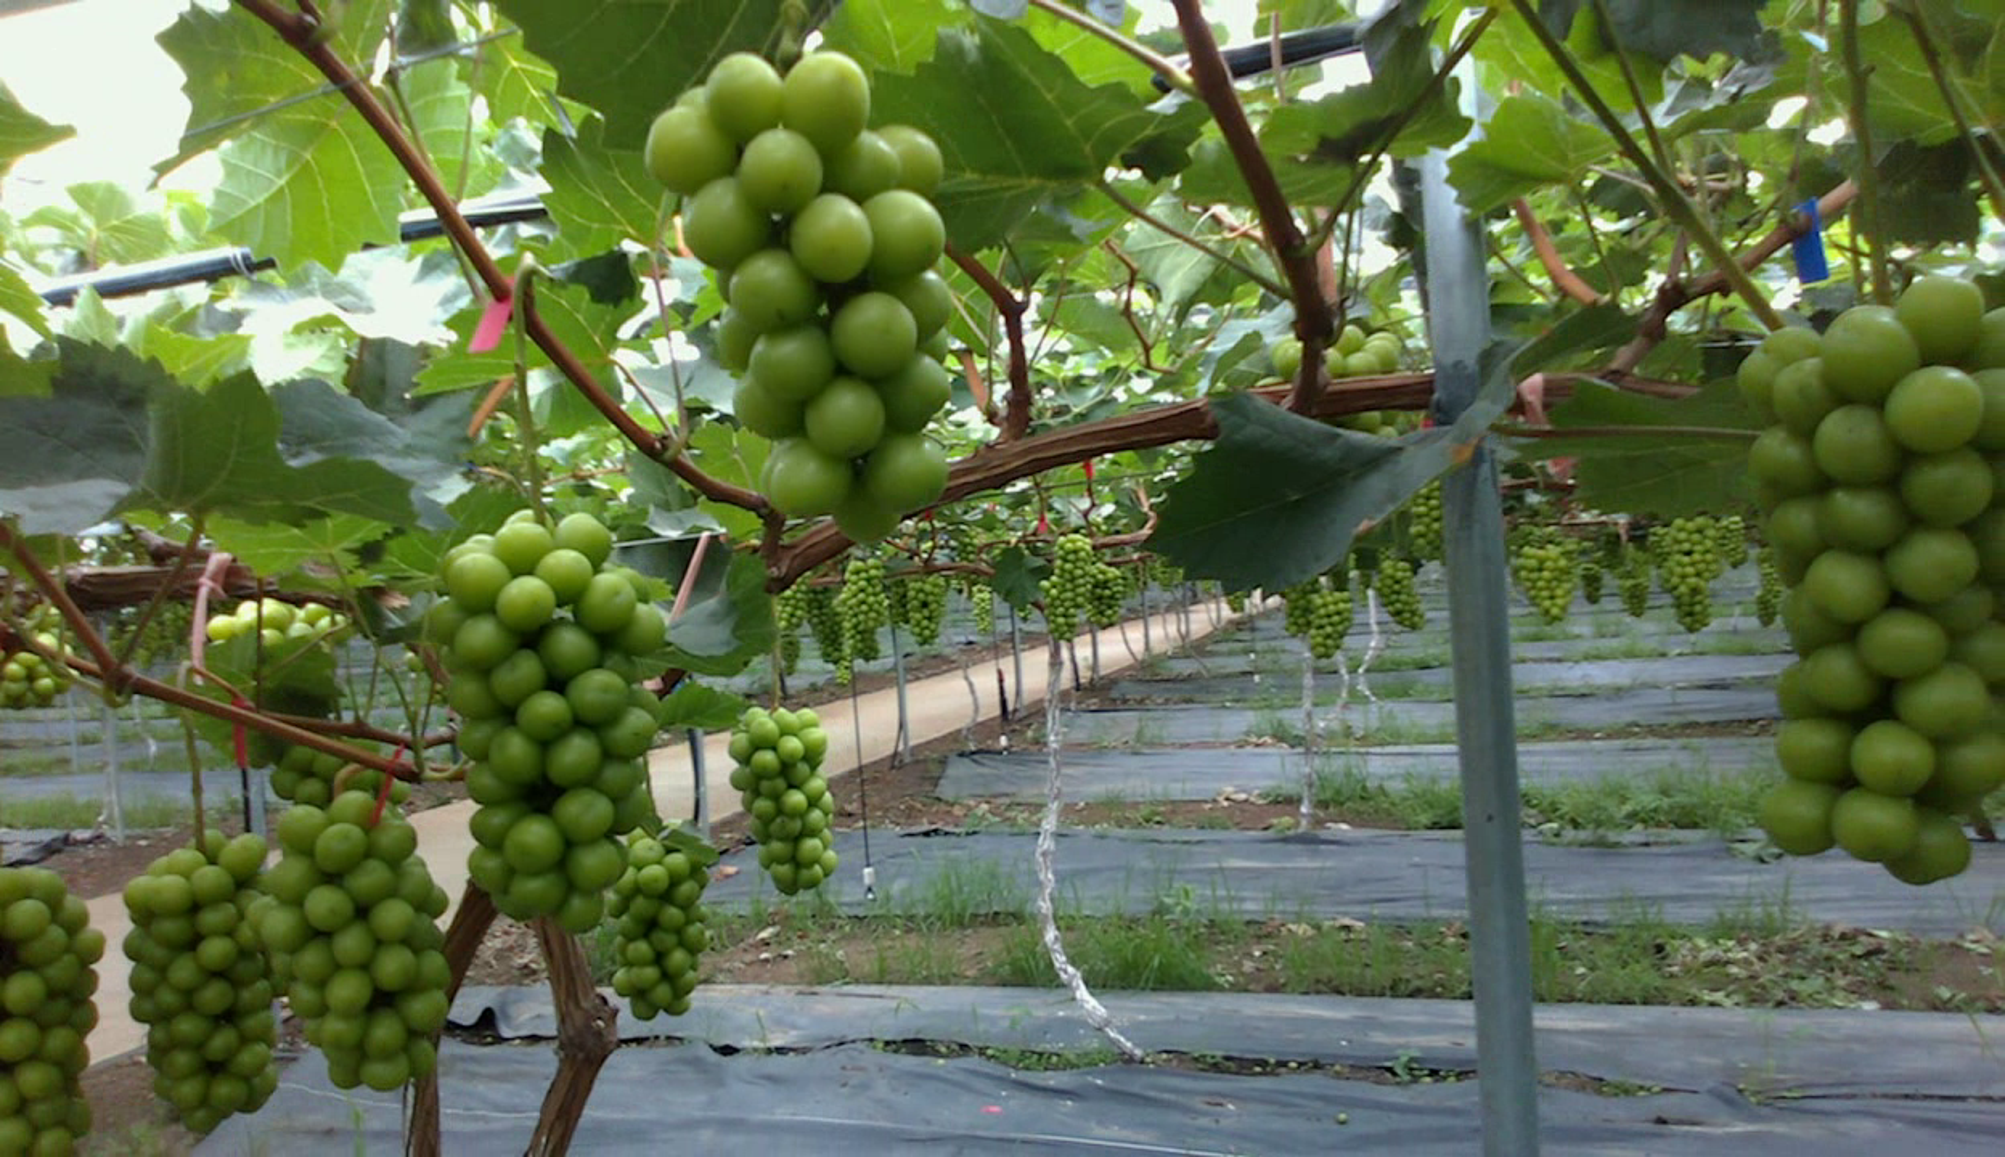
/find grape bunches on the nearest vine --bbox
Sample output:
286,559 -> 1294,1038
429,509 -> 664,934
246,789 -> 451,1091
0,866 -> 104,1155
1733,275 -> 2003,885
120,829 -> 278,1135
644,51 -> 954,546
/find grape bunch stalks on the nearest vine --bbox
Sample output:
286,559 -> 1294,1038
511,251 -> 546,525
175,659 -> 255,852
334,763 -> 366,797
1840,0 -> 1894,304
